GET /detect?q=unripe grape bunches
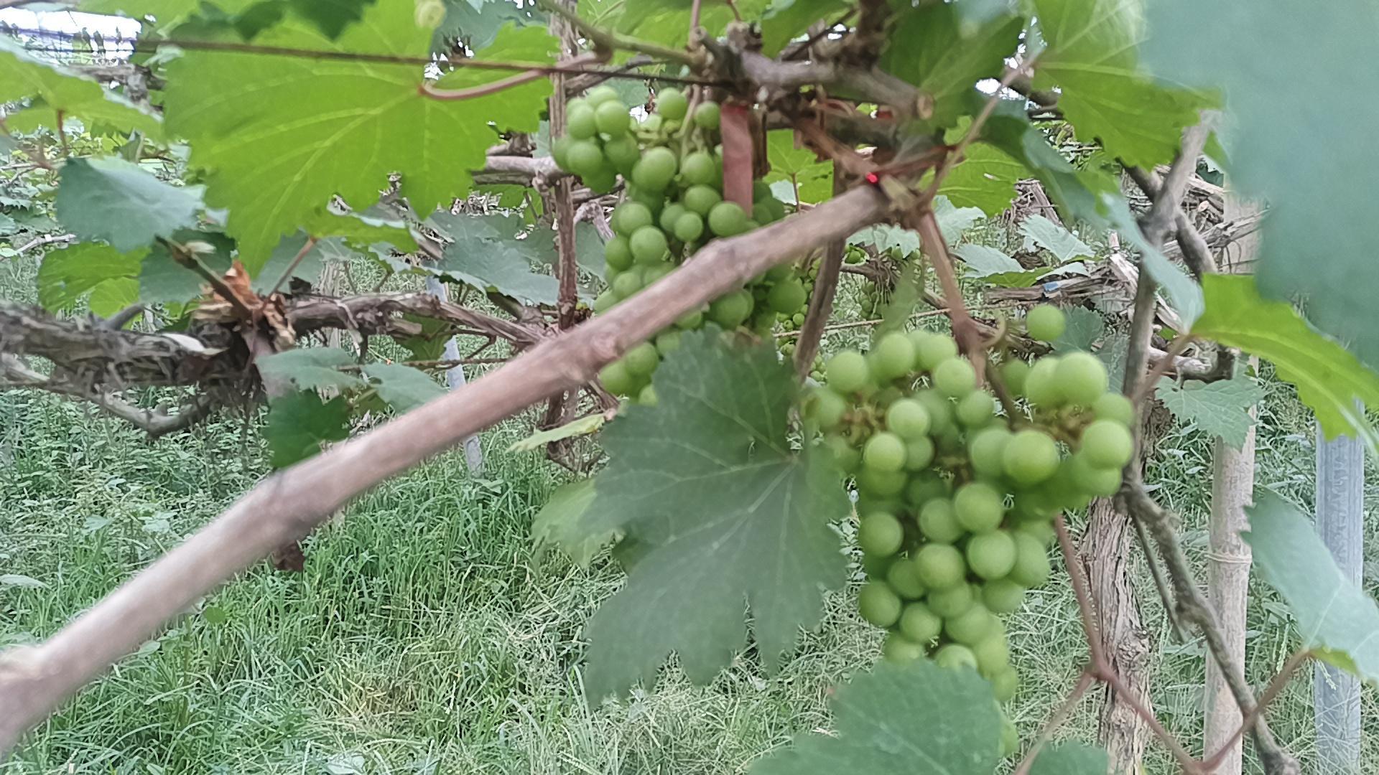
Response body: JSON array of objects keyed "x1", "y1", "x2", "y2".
[
  {"x1": 776, "y1": 250, "x2": 822, "y2": 357},
  {"x1": 552, "y1": 86, "x2": 804, "y2": 396},
  {"x1": 802, "y1": 305, "x2": 1132, "y2": 700},
  {"x1": 841, "y1": 243, "x2": 924, "y2": 319}
]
